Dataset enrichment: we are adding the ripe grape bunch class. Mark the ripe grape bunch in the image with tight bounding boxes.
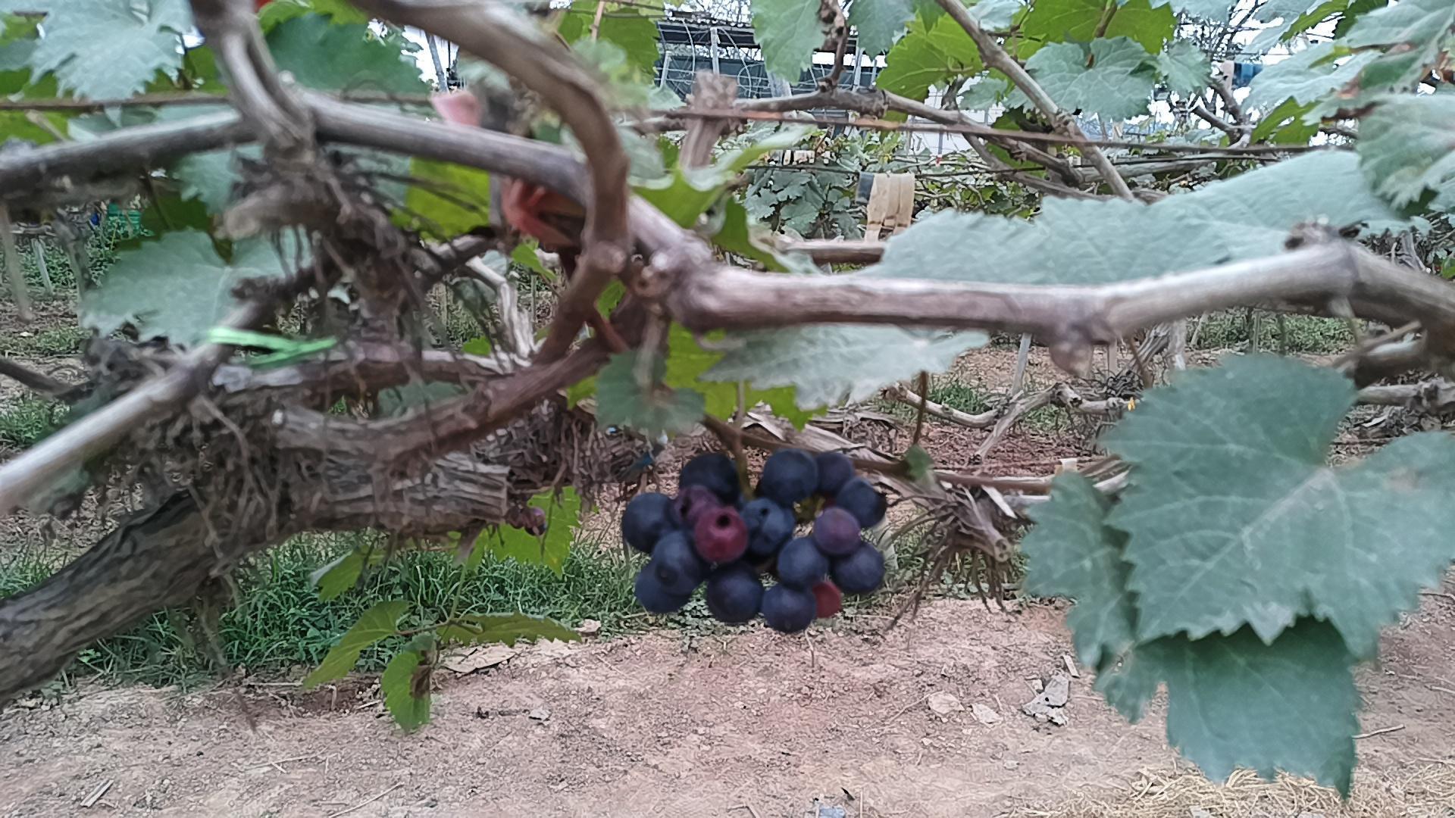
[621,448,886,634]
